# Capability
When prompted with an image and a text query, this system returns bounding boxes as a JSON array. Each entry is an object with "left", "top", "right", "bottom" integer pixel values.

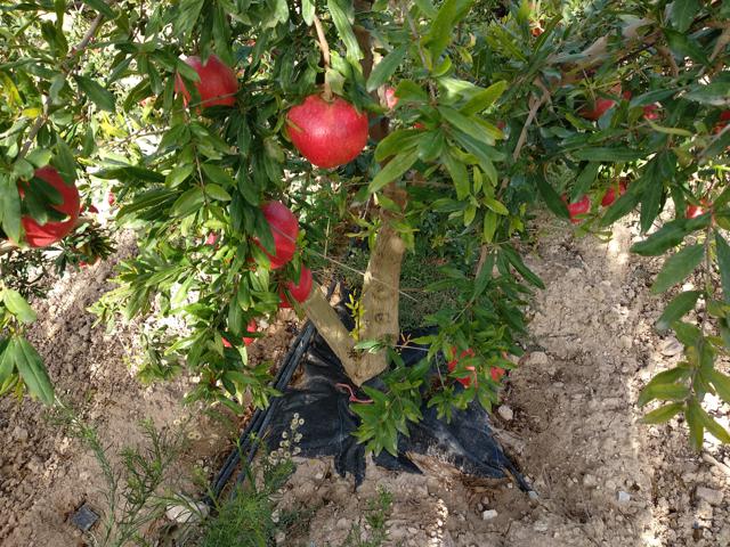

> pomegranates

[
  {"left": 23, "top": 166, "right": 80, "bottom": 248},
  {"left": 286, "top": 91, "right": 370, "bottom": 169},
  {"left": 252, "top": 201, "right": 300, "bottom": 270},
  {"left": 576, "top": 98, "right": 617, "bottom": 121},
  {"left": 448, "top": 345, "right": 506, "bottom": 390},
  {"left": 279, "top": 264, "right": 313, "bottom": 309},
  {"left": 686, "top": 199, "right": 712, "bottom": 220},
  {"left": 561, "top": 195, "right": 590, "bottom": 222},
  {"left": 221, "top": 319, "right": 258, "bottom": 348},
  {"left": 173, "top": 52, "right": 238, "bottom": 107},
  {"left": 601, "top": 182, "right": 625, "bottom": 206}
]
